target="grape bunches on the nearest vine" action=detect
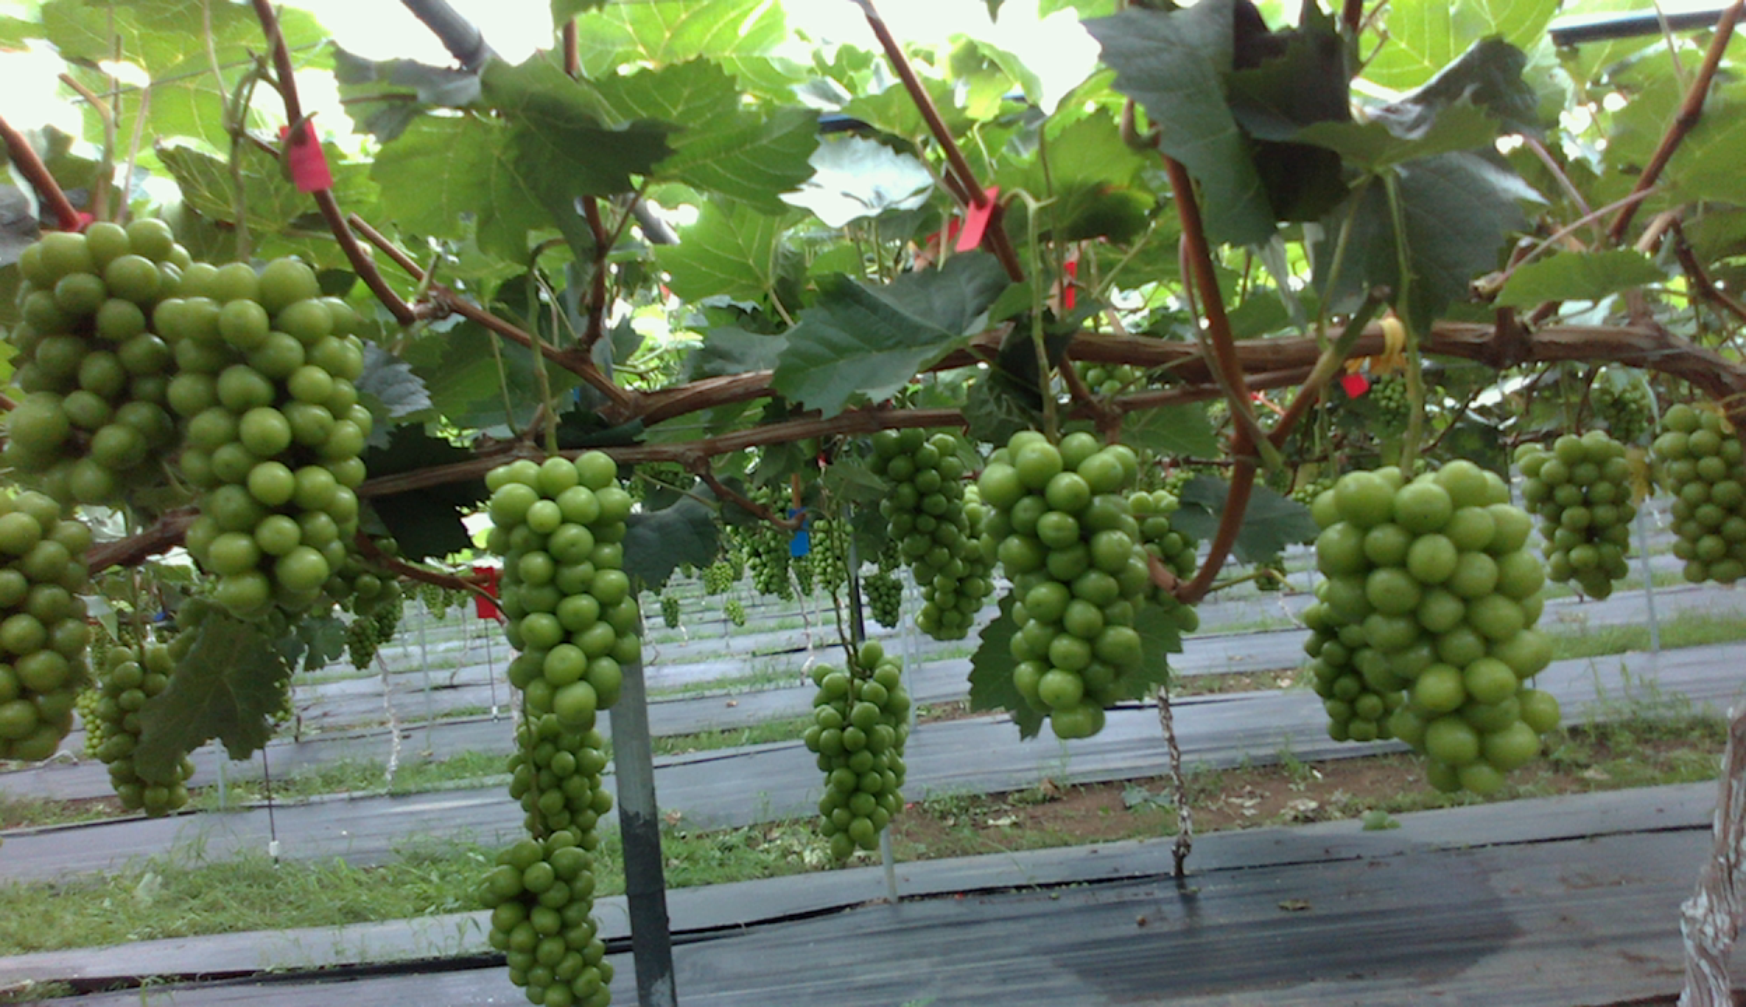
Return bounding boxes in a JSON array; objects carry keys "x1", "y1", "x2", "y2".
[
  {"x1": 155, "y1": 259, "x2": 372, "y2": 614},
  {"x1": 485, "y1": 450, "x2": 642, "y2": 736},
  {"x1": 974, "y1": 432, "x2": 1151, "y2": 738},
  {"x1": 1309, "y1": 460, "x2": 1560, "y2": 794},
  {"x1": 0, "y1": 474, "x2": 92, "y2": 761},
  {"x1": 6, "y1": 217, "x2": 192, "y2": 508}
]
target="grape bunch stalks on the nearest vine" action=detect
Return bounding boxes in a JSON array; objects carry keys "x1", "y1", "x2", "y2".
[
  {"x1": 1005, "y1": 187, "x2": 1056, "y2": 442},
  {"x1": 228, "y1": 70, "x2": 253, "y2": 260},
  {"x1": 57, "y1": 73, "x2": 115, "y2": 220},
  {"x1": 1379, "y1": 172, "x2": 1420, "y2": 483},
  {"x1": 525, "y1": 238, "x2": 564, "y2": 456}
]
